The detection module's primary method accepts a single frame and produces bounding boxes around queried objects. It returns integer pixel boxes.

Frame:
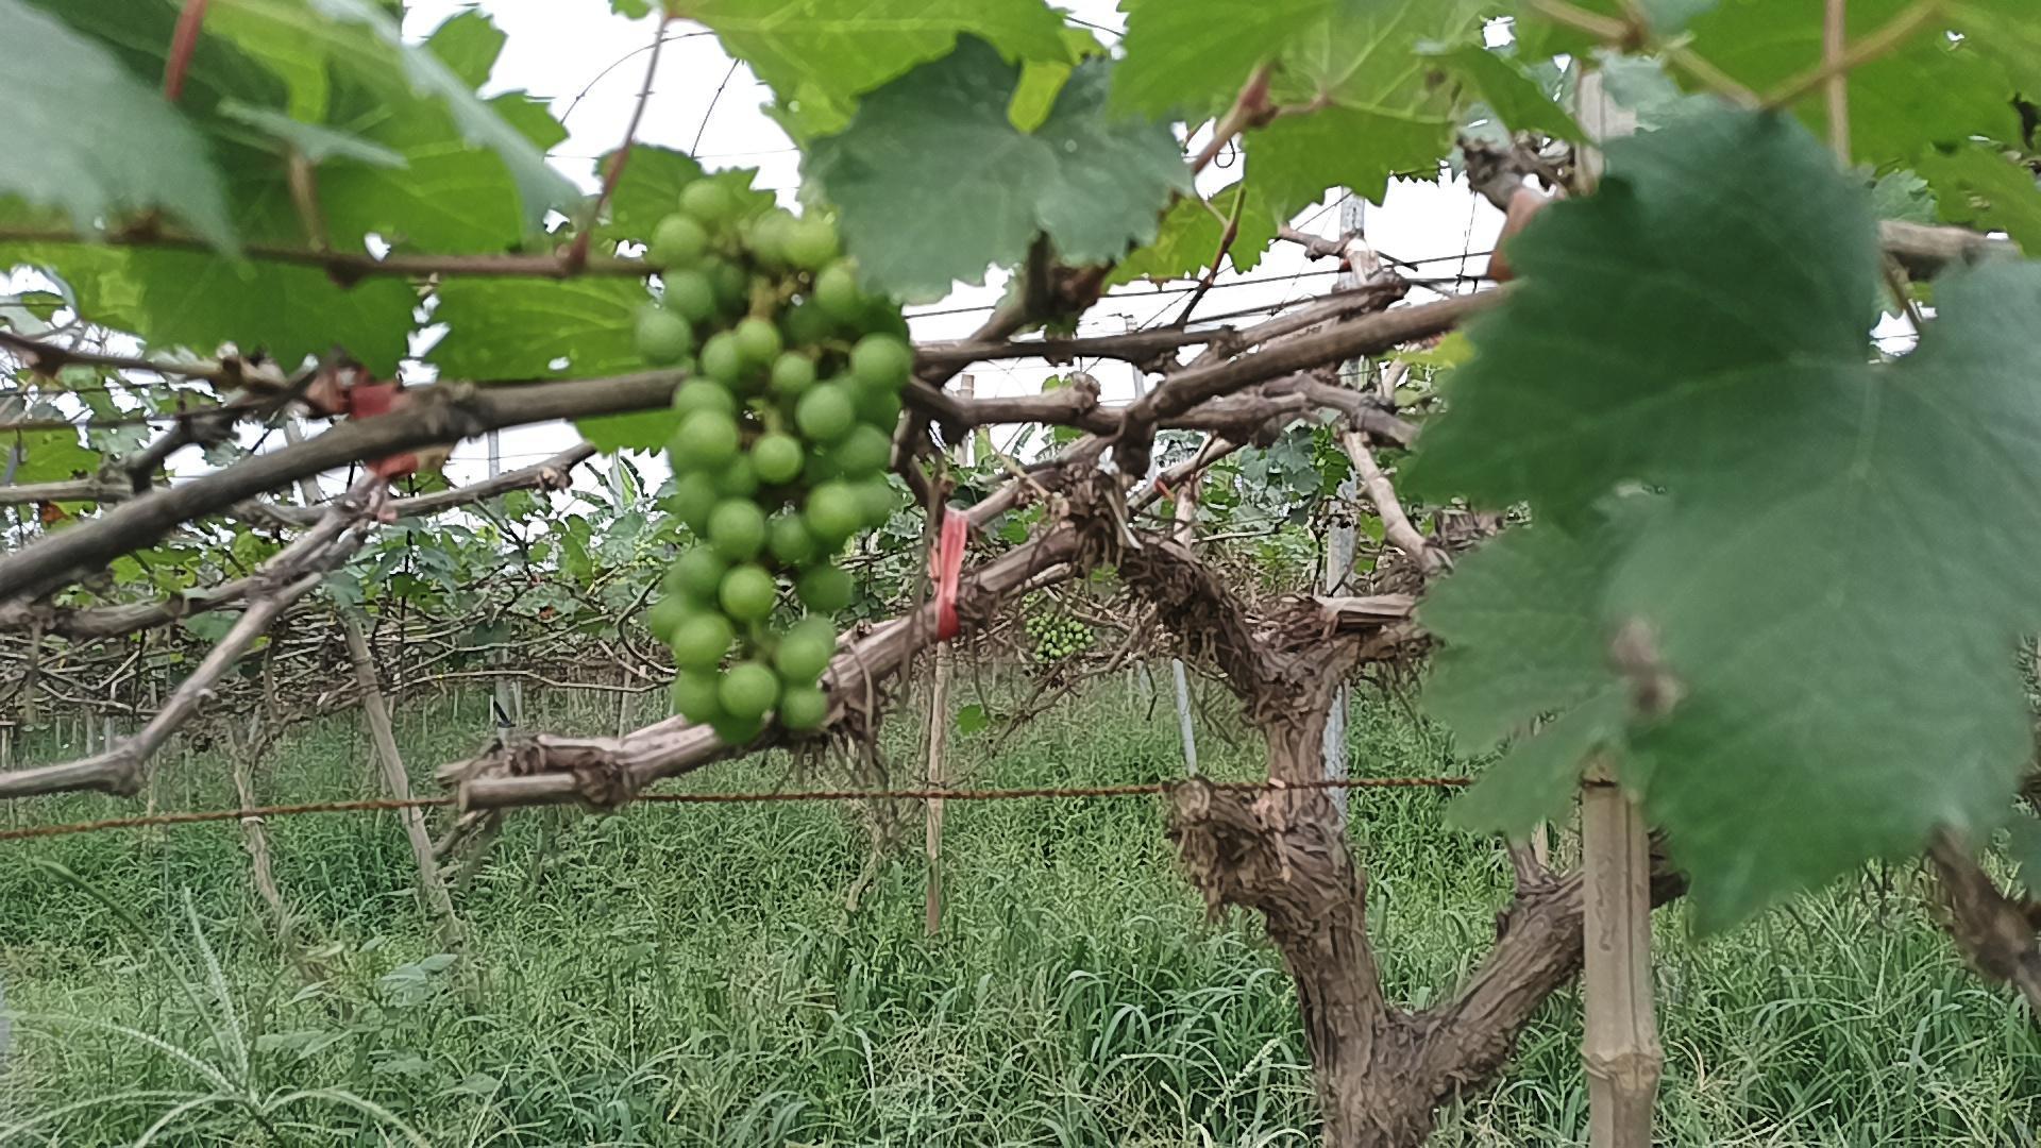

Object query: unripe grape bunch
[638,174,909,742]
